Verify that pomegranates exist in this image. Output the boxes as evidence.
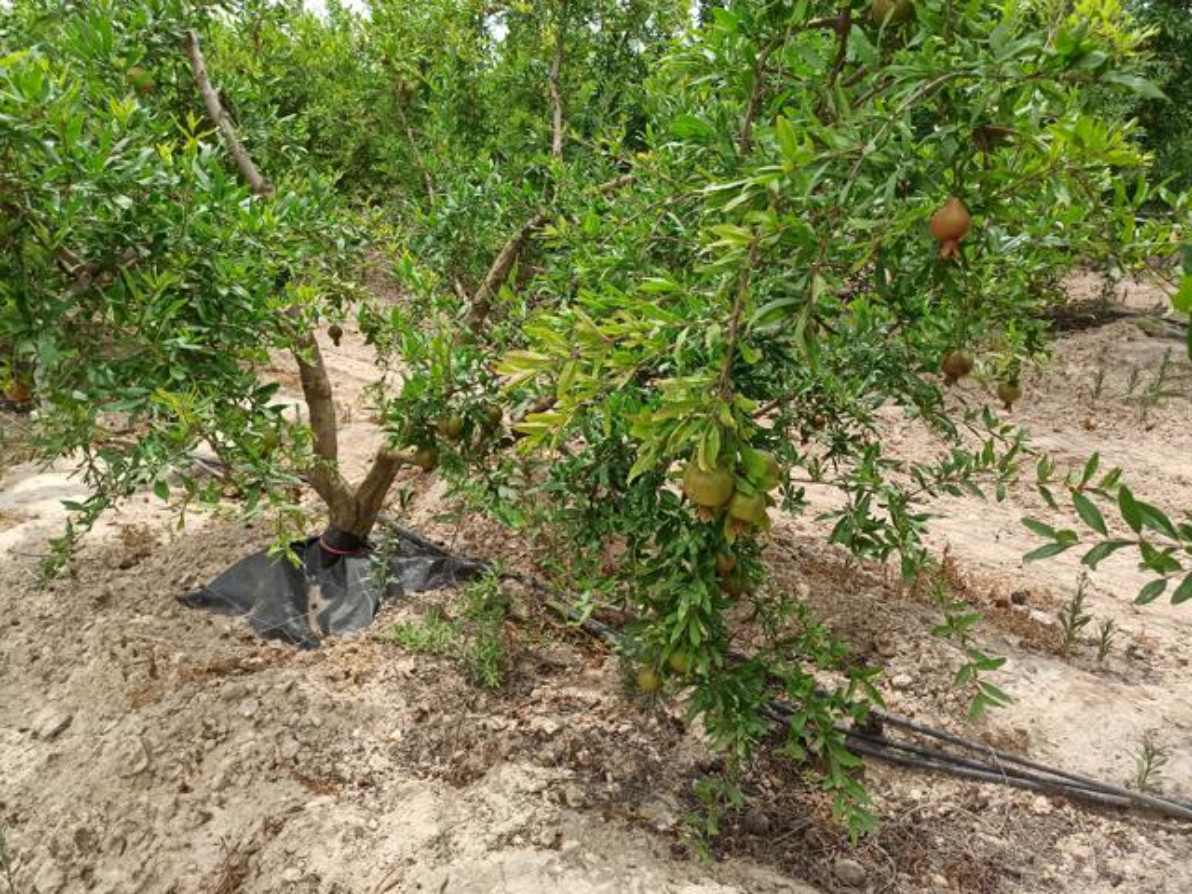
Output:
[715,551,736,577]
[669,654,685,674]
[682,460,736,507]
[635,667,663,695]
[415,447,438,467]
[756,449,779,481]
[438,415,462,440]
[929,196,972,259]
[4,386,30,402]
[872,0,911,20]
[941,350,972,387]
[726,490,765,536]
[996,382,1023,415]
